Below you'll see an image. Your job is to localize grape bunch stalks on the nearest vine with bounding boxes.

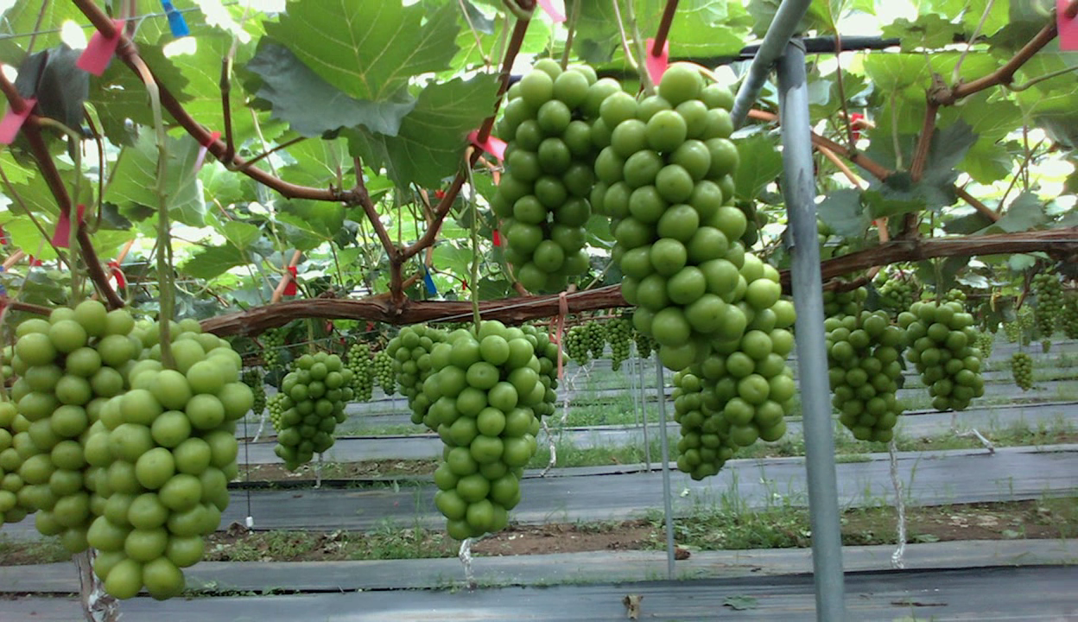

[561,0,581,70]
[623,0,656,97]
[128,53,177,371]
[39,117,82,308]
[463,145,481,336]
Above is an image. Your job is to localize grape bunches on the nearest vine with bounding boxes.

[82,319,253,601]
[422,320,545,541]
[491,58,621,293]
[590,63,747,371]
[10,301,150,553]
[690,252,797,447]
